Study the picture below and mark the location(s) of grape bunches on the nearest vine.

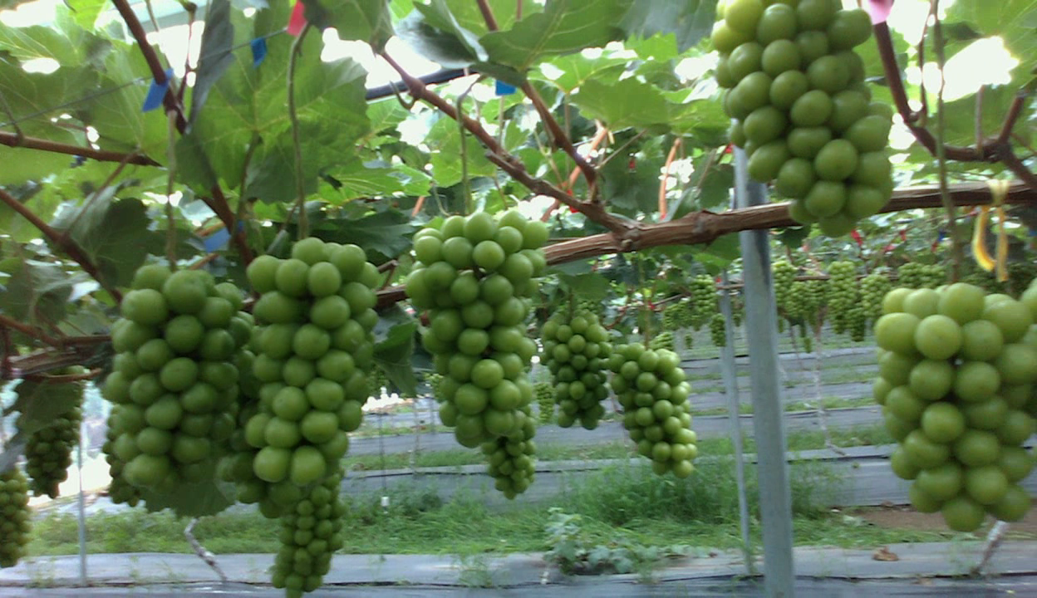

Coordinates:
[708,0,892,239]
[104,264,252,495]
[405,213,548,448]
[871,282,1036,532]
[245,237,379,487]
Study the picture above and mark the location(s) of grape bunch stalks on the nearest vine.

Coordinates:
[457,76,485,212]
[931,0,961,282]
[165,113,178,267]
[286,21,312,238]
